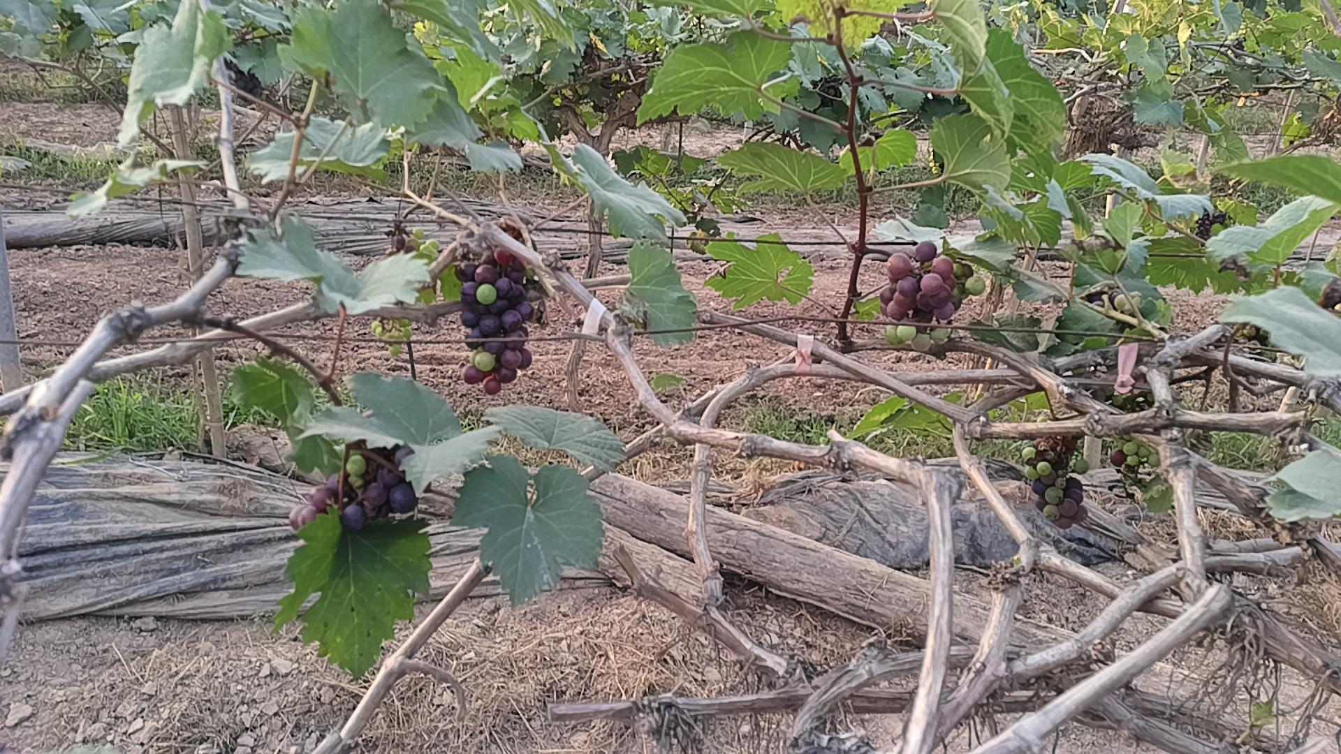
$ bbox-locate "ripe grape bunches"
[1195,209,1233,240]
[223,56,265,98]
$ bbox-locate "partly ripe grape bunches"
[1111,436,1161,475]
[369,227,441,356]
[455,246,537,395]
[879,241,986,352]
[1022,436,1089,529]
[1080,286,1136,317]
[291,441,417,530]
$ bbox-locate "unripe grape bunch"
[1090,389,1152,412]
